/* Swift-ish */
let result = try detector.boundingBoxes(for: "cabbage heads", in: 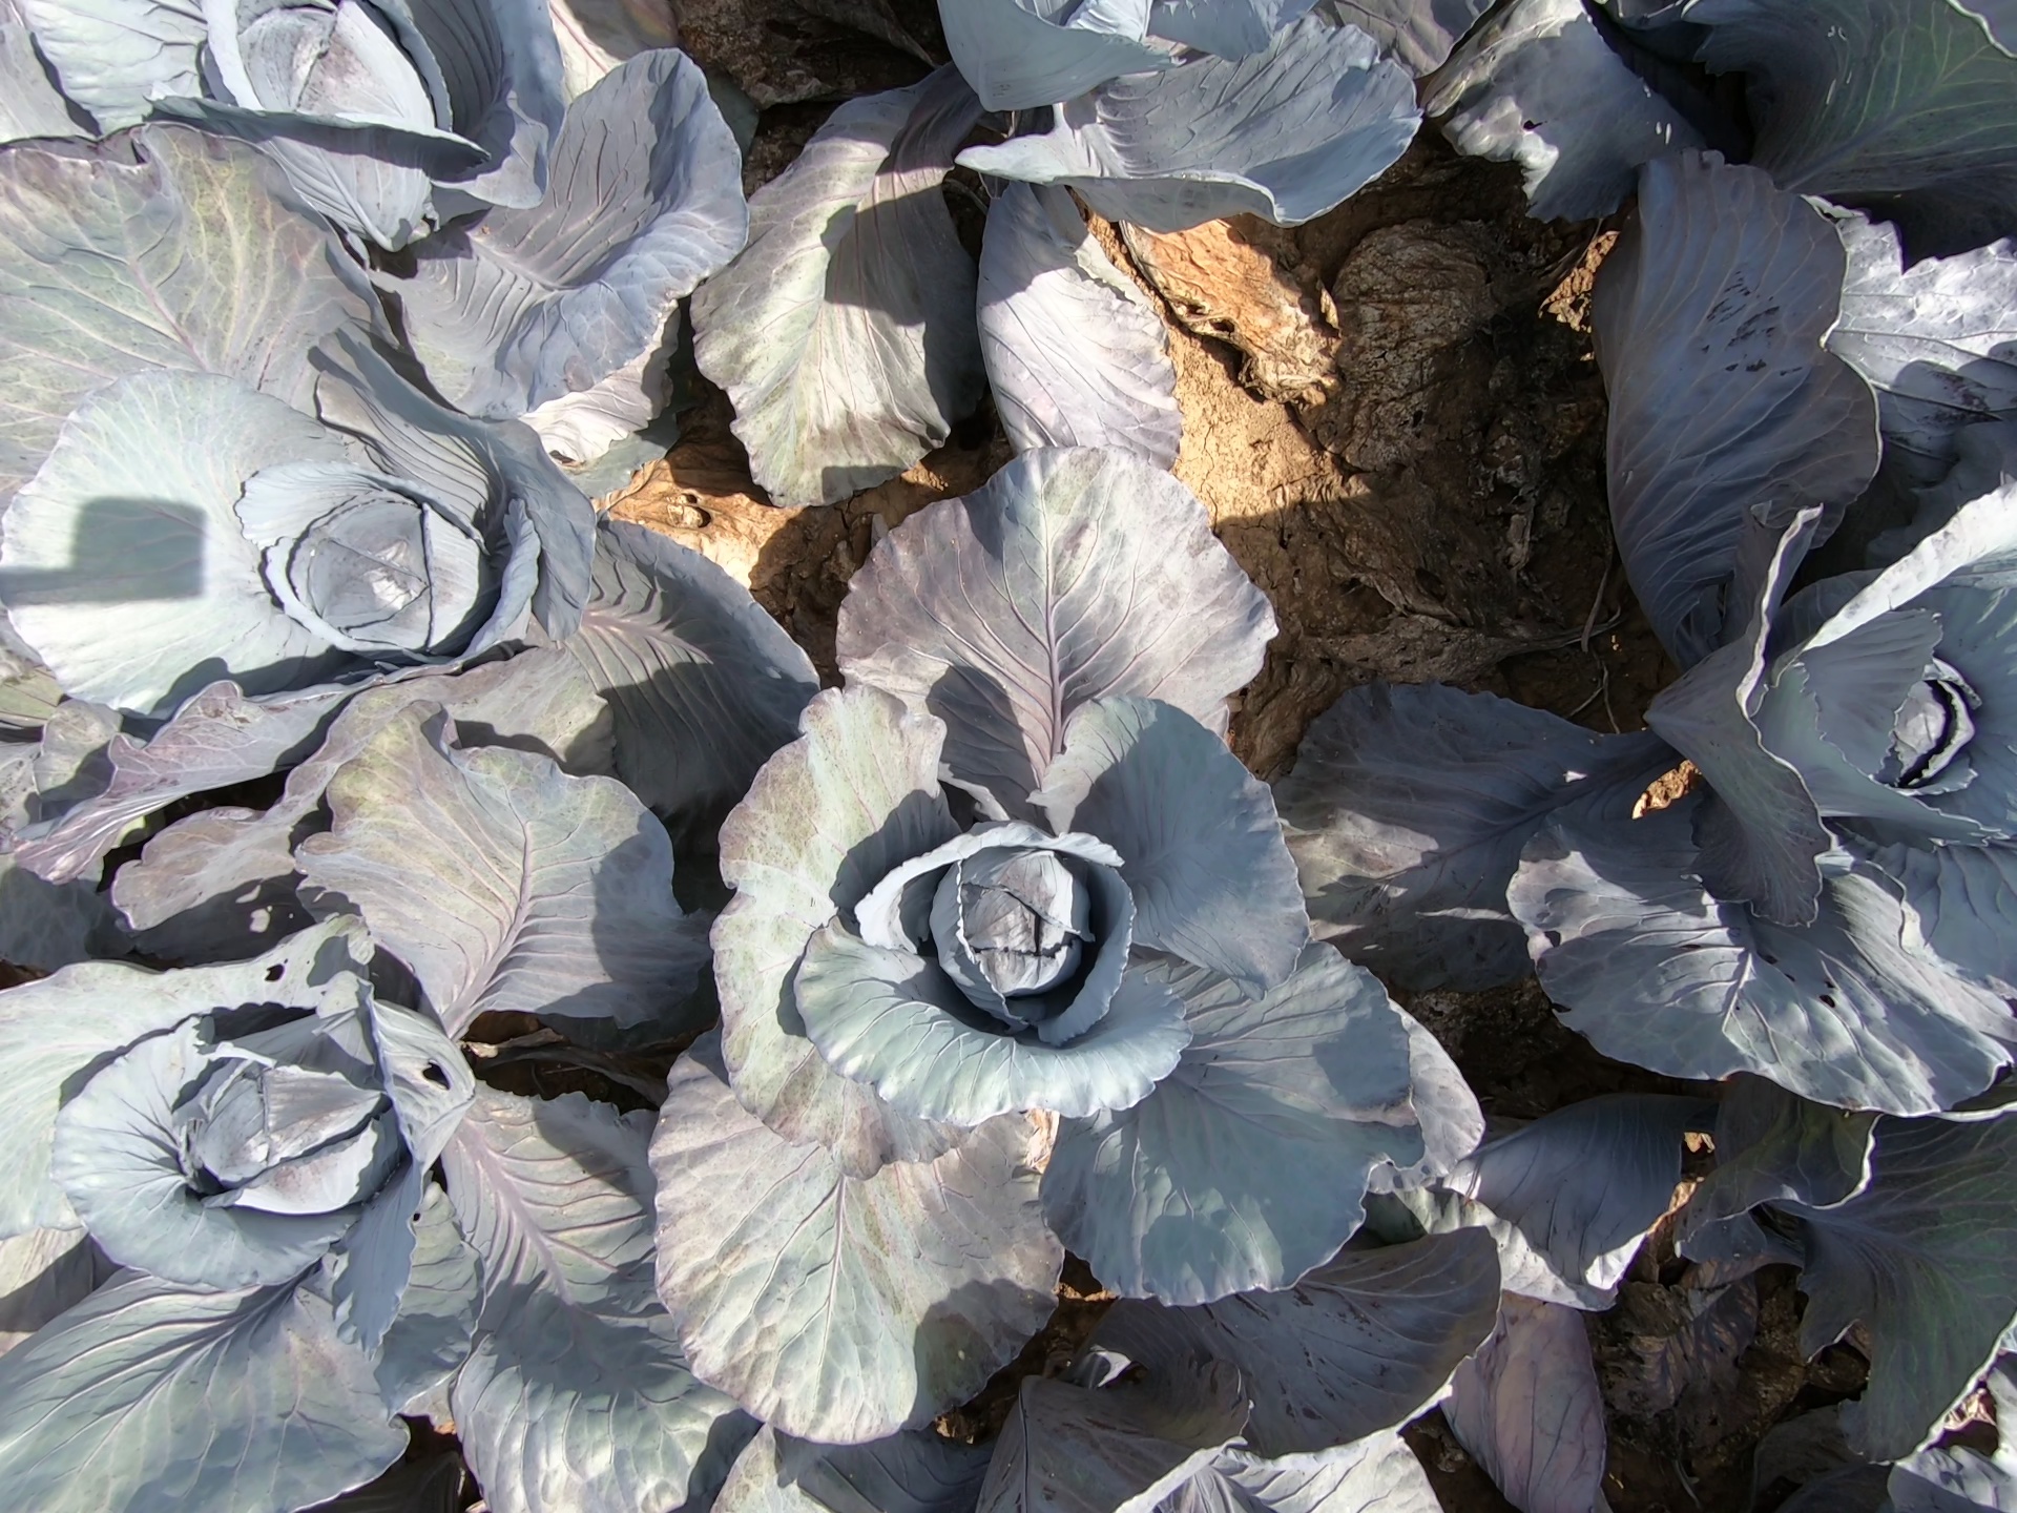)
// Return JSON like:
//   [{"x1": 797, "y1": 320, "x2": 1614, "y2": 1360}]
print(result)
[
  {"x1": 928, "y1": 832, "x2": 1093, "y2": 998},
  {"x1": 205, "y1": 1, "x2": 444, "y2": 230},
  {"x1": 293, "y1": 491, "x2": 494, "y2": 664},
  {"x1": 1791, "y1": 644, "x2": 1971, "y2": 796},
  {"x1": 186, "y1": 1021, "x2": 429, "y2": 1215},
  {"x1": 934, "y1": 3, "x2": 1156, "y2": 107}
]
